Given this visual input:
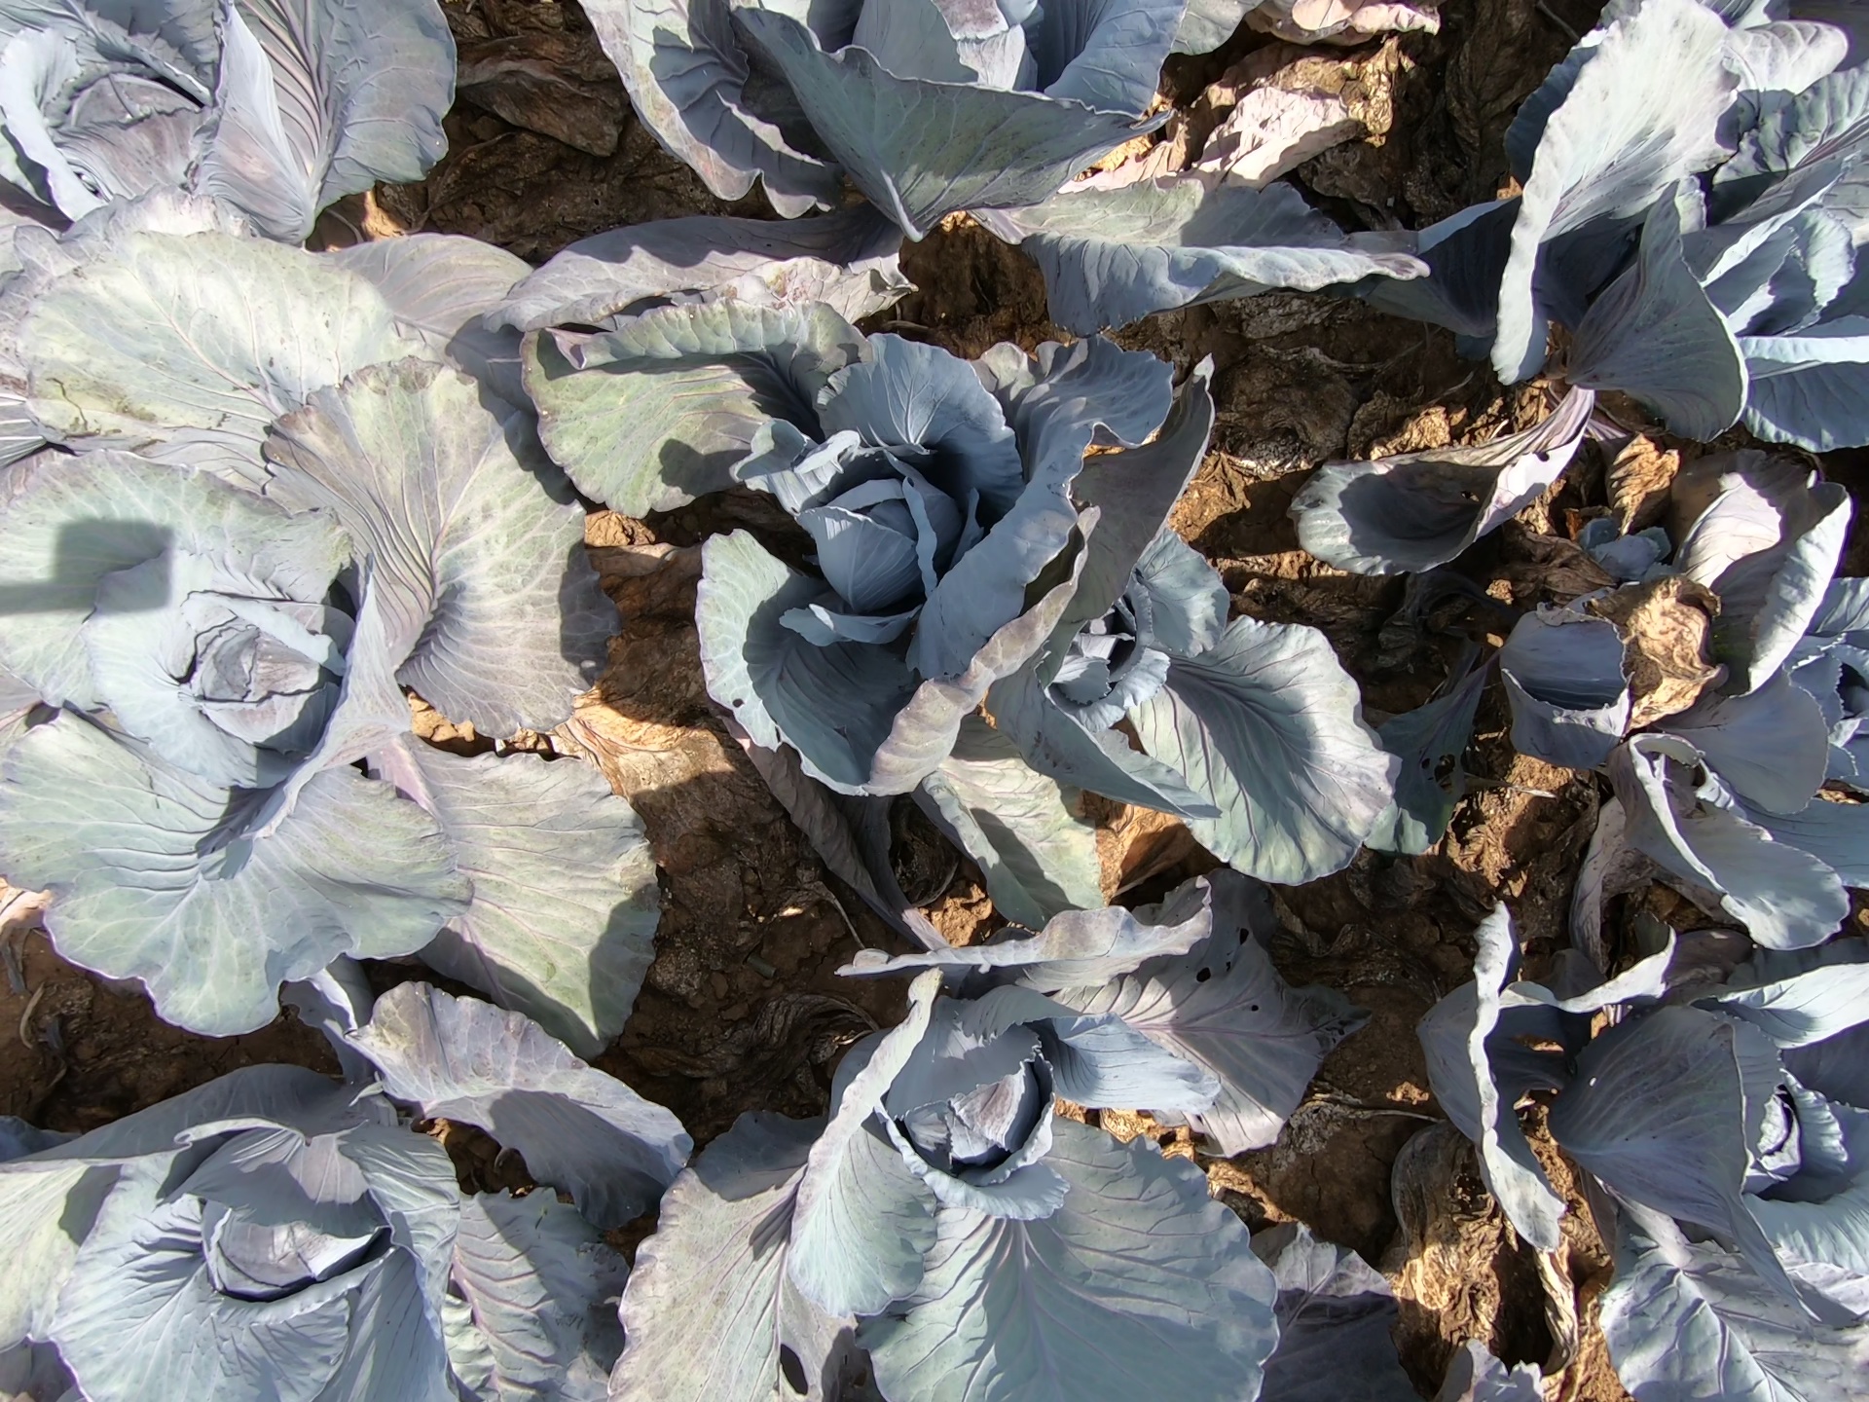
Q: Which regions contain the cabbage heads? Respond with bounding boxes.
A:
[899,1021,1043,1177]
[843,3,1041,186]
[1623,220,1798,362]
[194,598,370,757]
[1620,1051,1805,1203]
[1043,588,1131,685]
[196,1120,393,1296]
[823,481,945,605]
[62,69,215,208]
